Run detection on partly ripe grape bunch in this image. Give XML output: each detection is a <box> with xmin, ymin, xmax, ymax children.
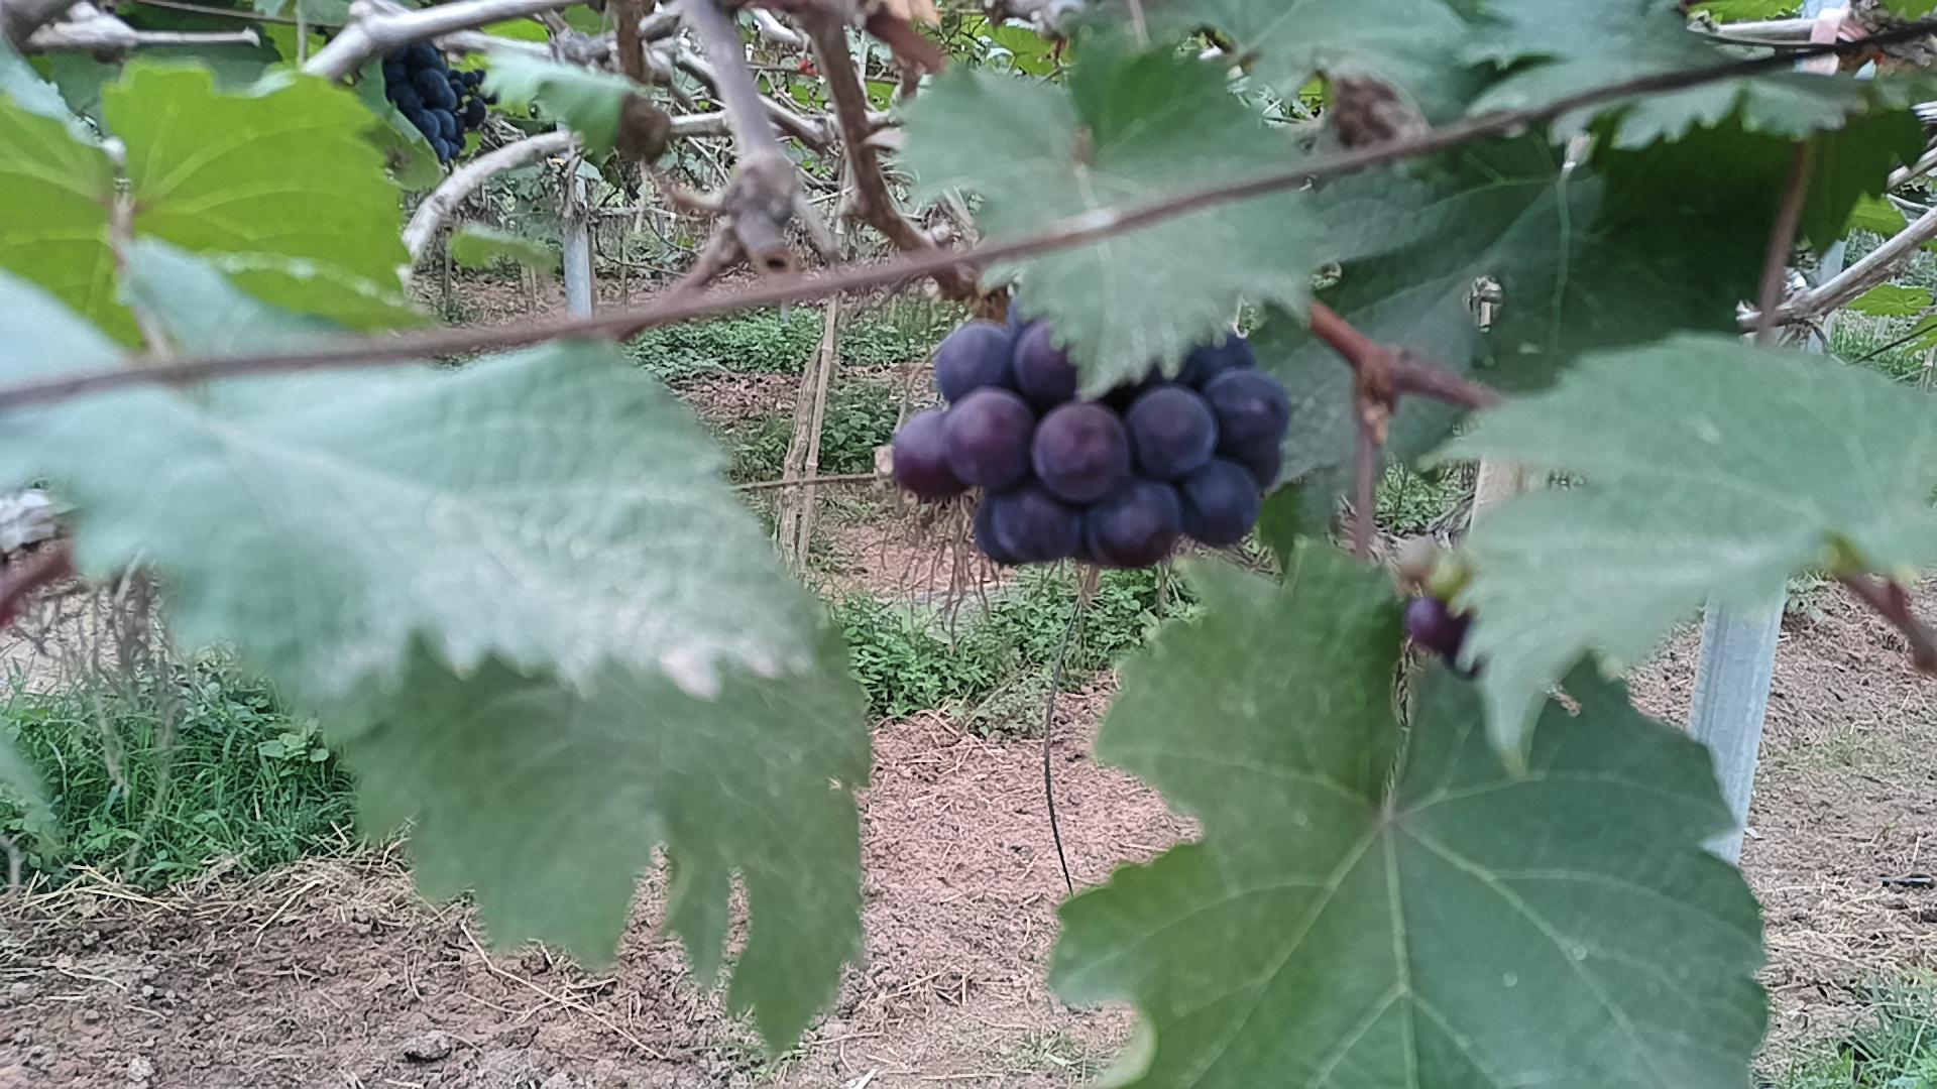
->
<box><xmin>1398</xmin><ymin>538</ymin><xmax>1472</xmax><ymax>667</ymax></box>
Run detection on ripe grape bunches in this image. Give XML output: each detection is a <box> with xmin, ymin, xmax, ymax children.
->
<box><xmin>381</xmin><ymin>41</ymin><xmax>495</xmax><ymax>167</ymax></box>
<box><xmin>894</xmin><ymin>308</ymin><xmax>1290</xmax><ymax>567</ymax></box>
